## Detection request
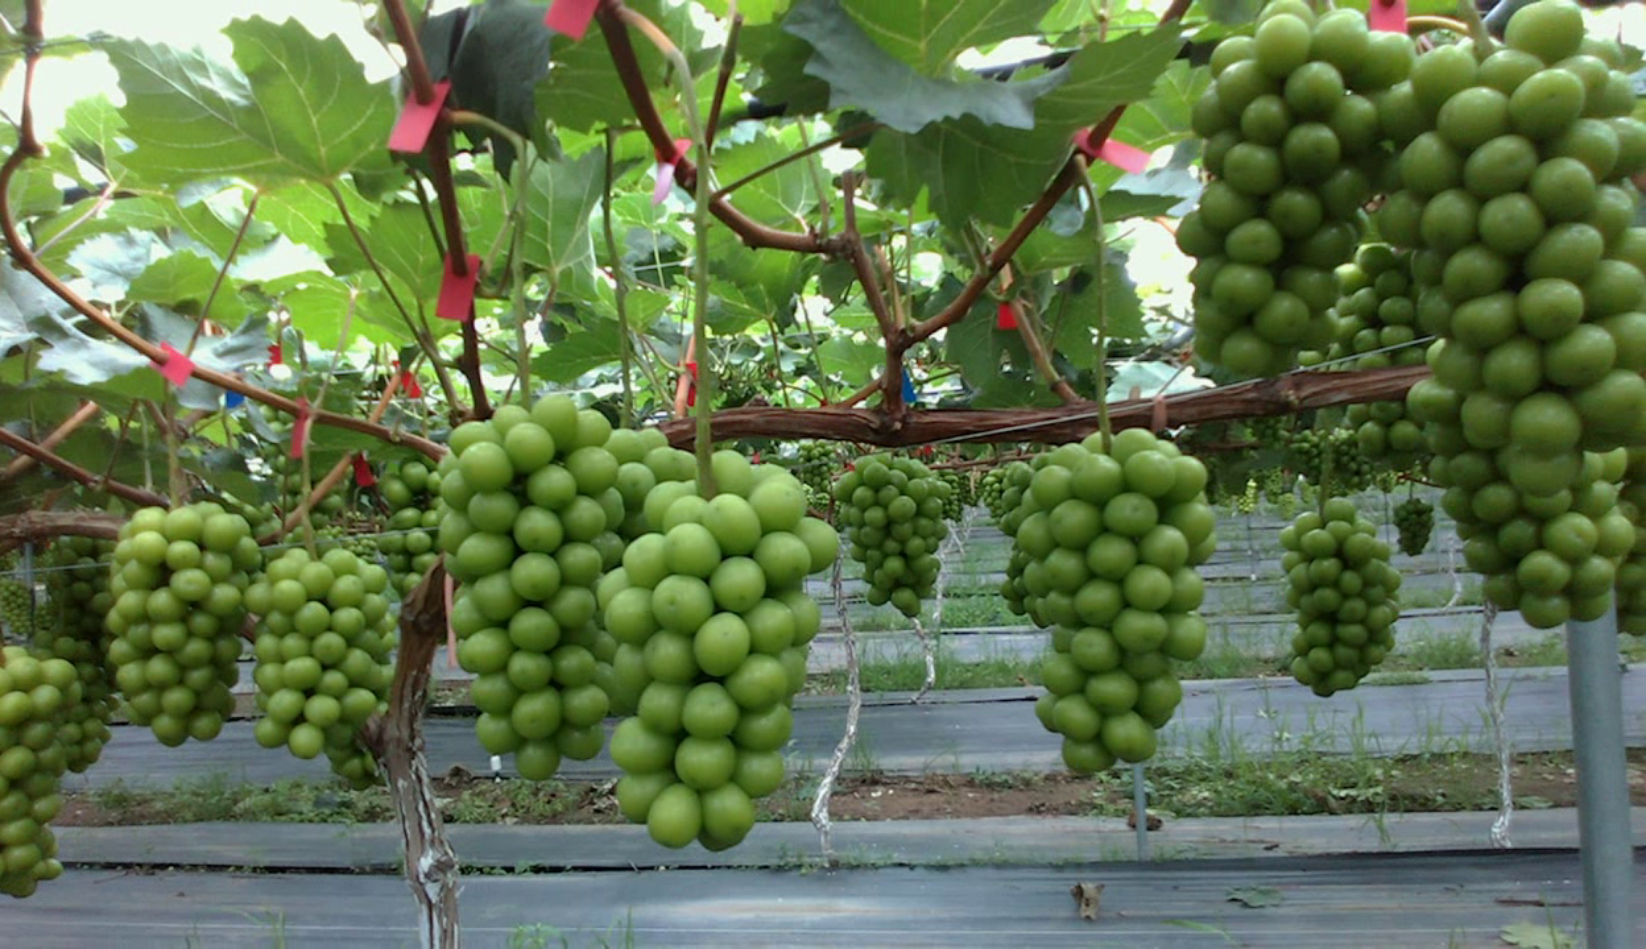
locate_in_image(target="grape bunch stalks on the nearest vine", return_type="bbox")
[162,377,183,511]
[1457,0,1497,63]
[301,418,319,560]
[621,5,719,501]
[1071,154,1113,455]
[452,111,533,413]
[1322,1,1339,12]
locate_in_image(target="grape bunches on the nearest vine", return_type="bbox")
[435,393,681,782]
[596,449,838,853]
[1378,0,1645,630]
[1174,0,1411,378]
[0,643,82,900]
[103,502,261,749]
[1016,427,1217,776]
[243,547,397,761]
